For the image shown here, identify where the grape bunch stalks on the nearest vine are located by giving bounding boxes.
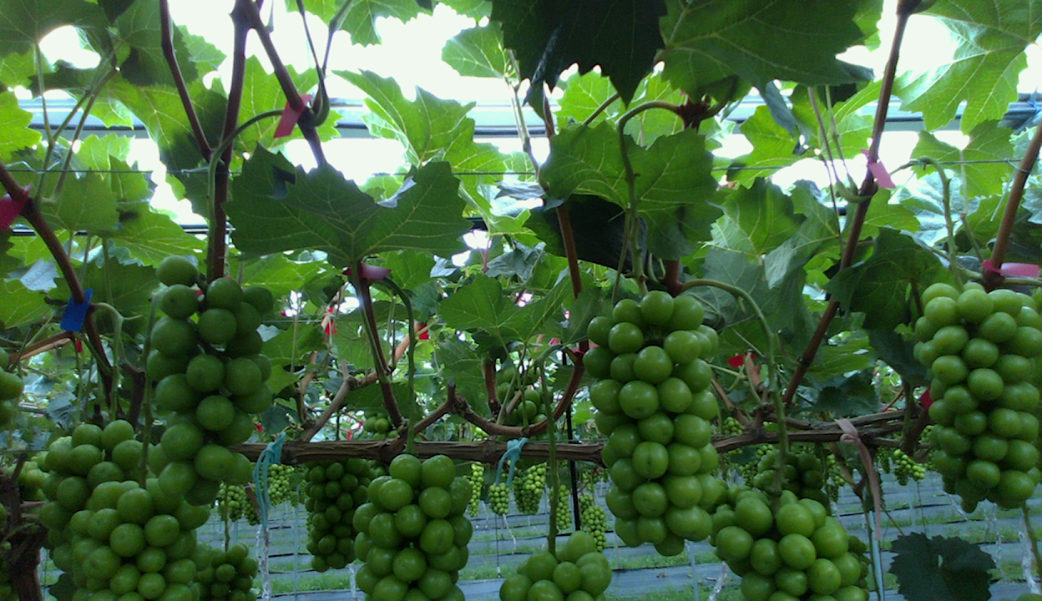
[615,100,680,299]
[206,109,284,285]
[90,301,124,423]
[138,293,159,489]
[890,157,964,294]
[383,276,417,455]
[680,279,789,519]
[535,344,564,558]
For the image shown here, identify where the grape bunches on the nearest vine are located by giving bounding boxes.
[352,453,473,600]
[498,531,613,600]
[68,478,212,599]
[912,281,1041,509]
[146,255,274,508]
[37,421,142,589]
[583,290,728,557]
[711,483,867,600]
